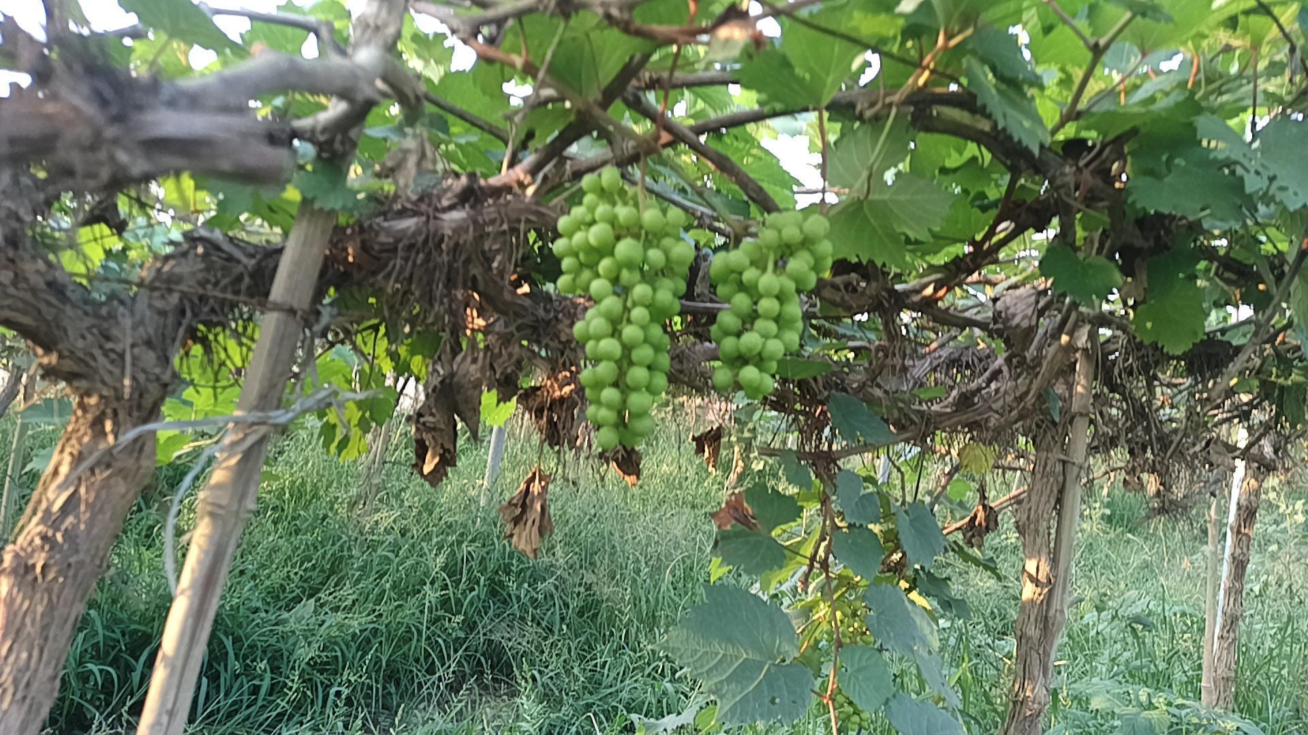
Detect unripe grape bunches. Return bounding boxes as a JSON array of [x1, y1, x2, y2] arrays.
[[552, 168, 695, 451], [710, 211, 832, 399]]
